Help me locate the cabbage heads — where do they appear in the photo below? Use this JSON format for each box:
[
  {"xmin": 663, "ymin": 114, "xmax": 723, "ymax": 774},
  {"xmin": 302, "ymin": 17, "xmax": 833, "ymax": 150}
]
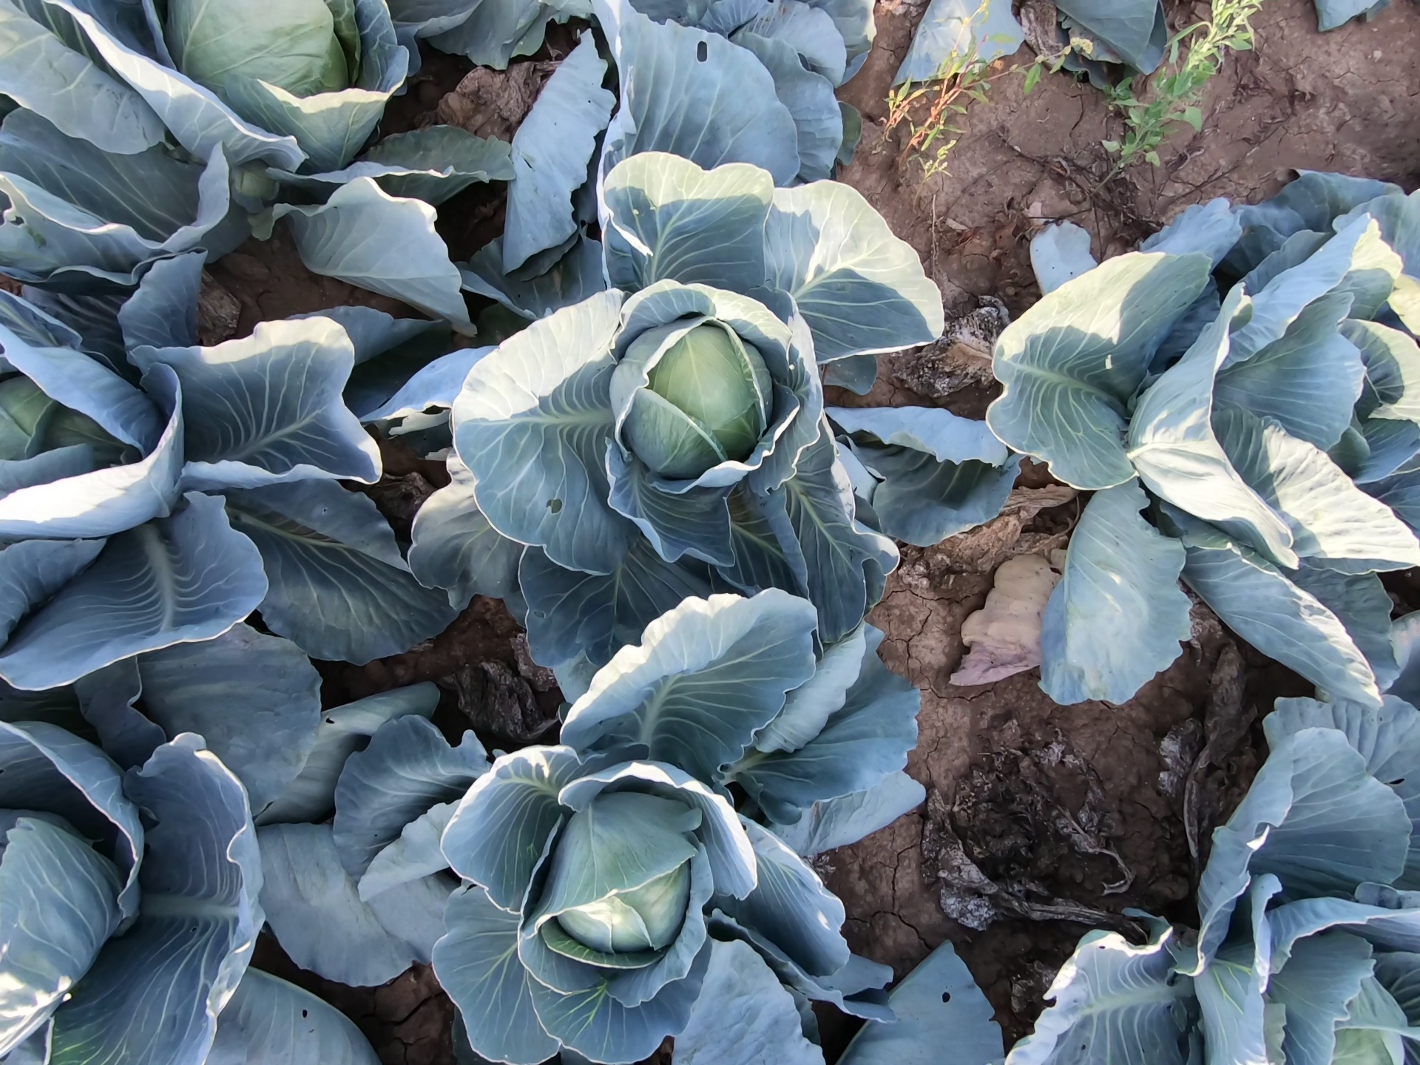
[
  {"xmin": 555, "ymin": 805, "xmax": 696, "ymax": 951},
  {"xmin": 1, "ymin": 363, "xmax": 151, "ymax": 510},
  {"xmin": 167, "ymin": 0, "xmax": 354, "ymax": 129},
  {"xmin": 1265, "ymin": 942, "xmax": 1404, "ymax": 1061},
  {"xmin": 621, "ymin": 320, "xmax": 768, "ymax": 476}
]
